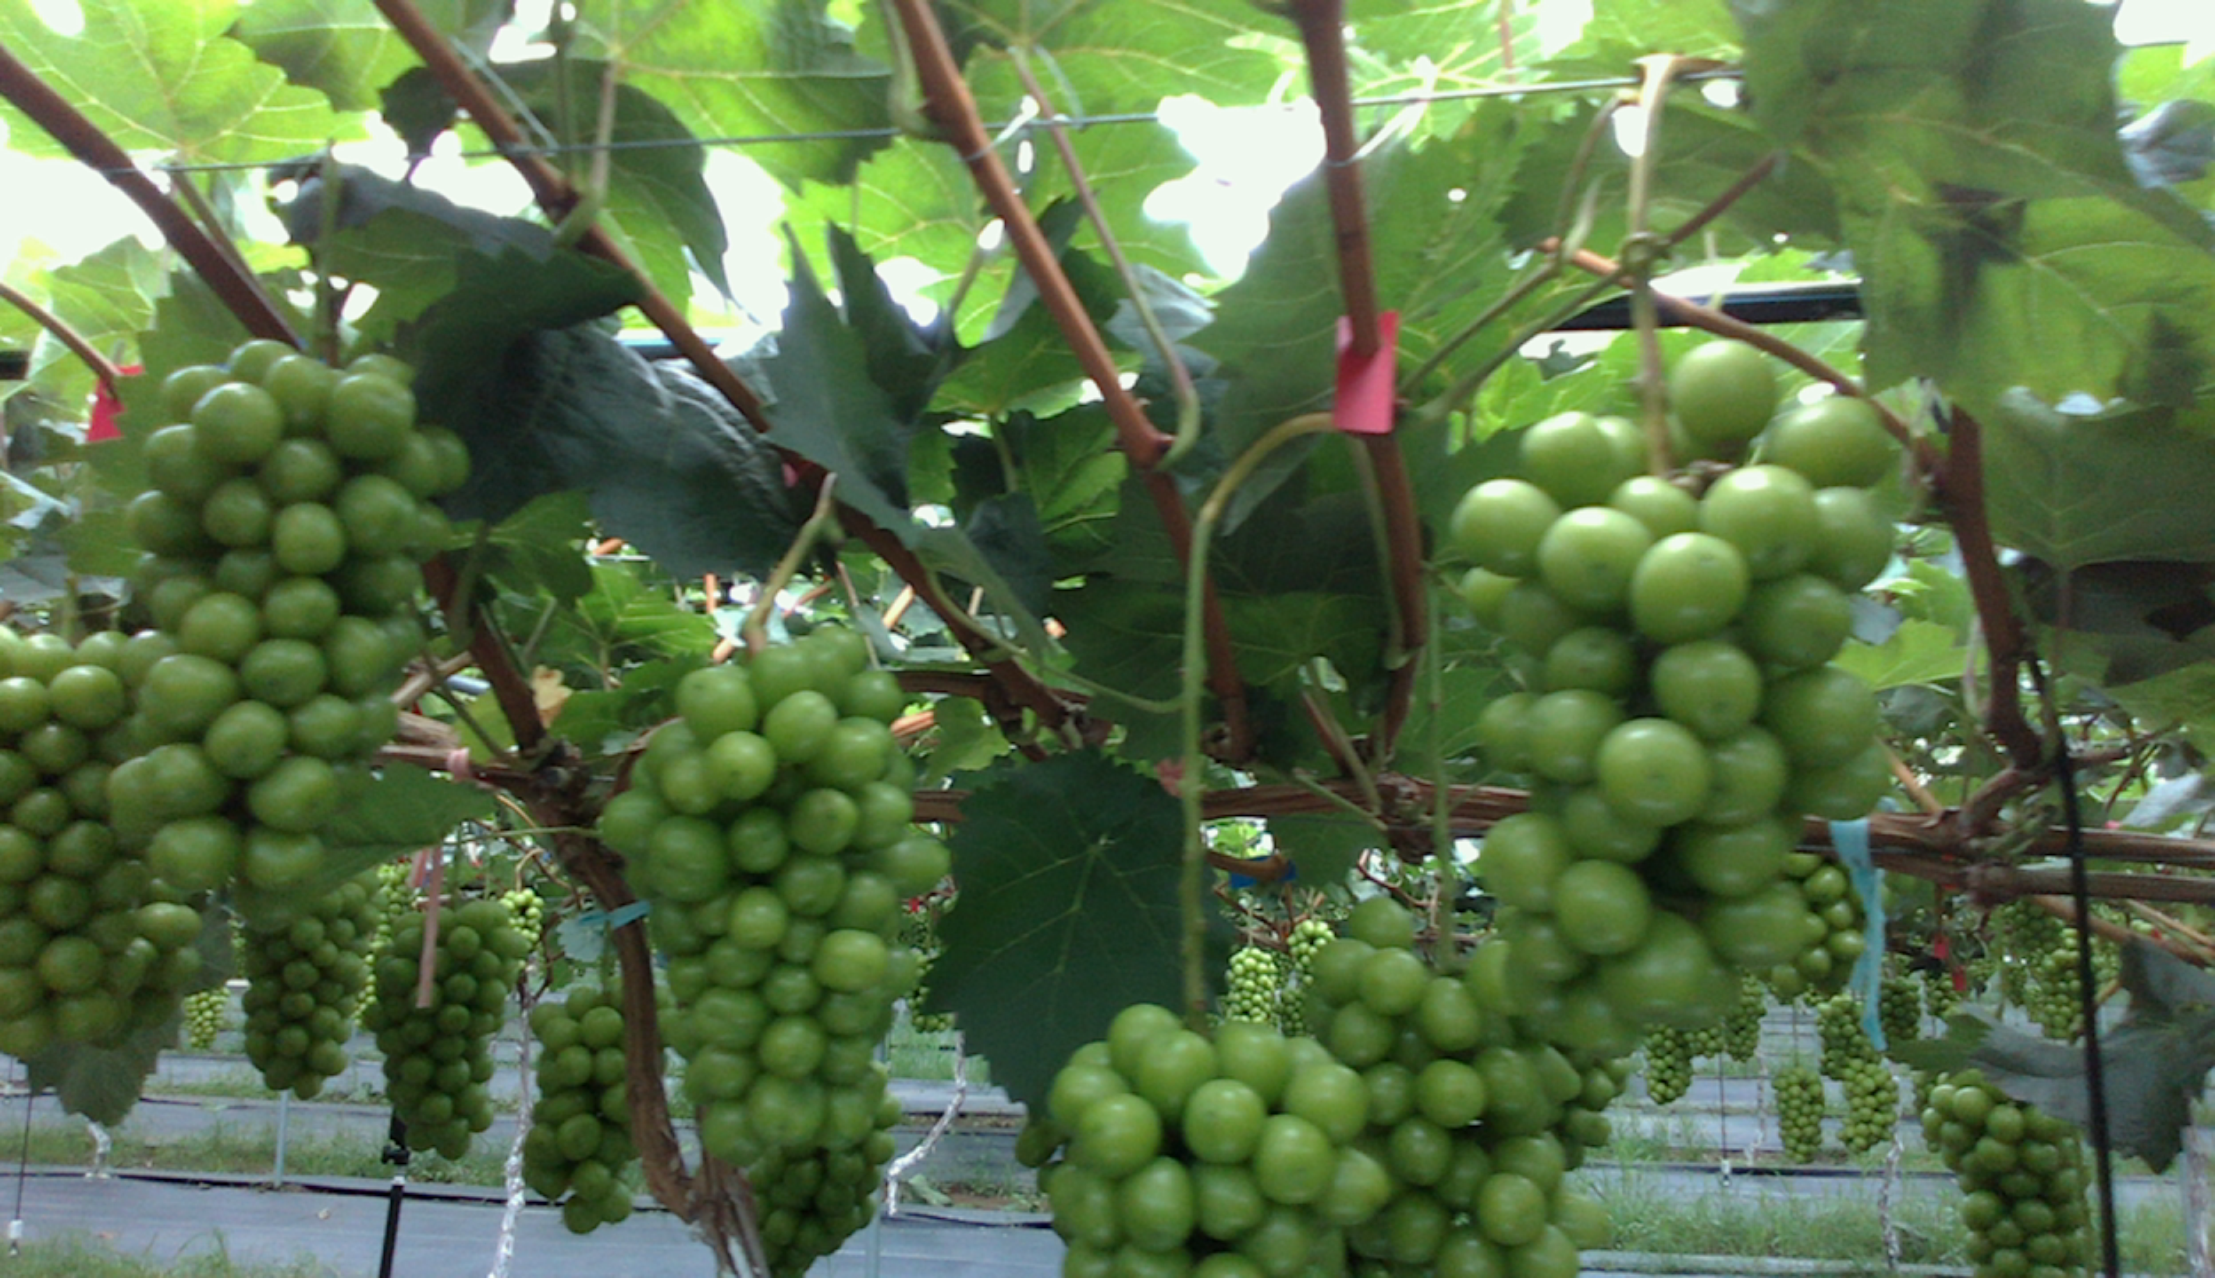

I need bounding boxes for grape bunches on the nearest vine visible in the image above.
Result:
[1049,1005,1390,1276]
[1306,893,1613,1276]
[600,628,951,1276]
[121,341,469,934]
[1452,337,1896,1060]
[0,621,209,1054]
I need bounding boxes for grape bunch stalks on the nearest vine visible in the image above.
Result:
[1624,67,1674,477]
[1180,412,1331,1033]
[740,472,838,660]
[312,149,341,367]
[1427,582,1457,978]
